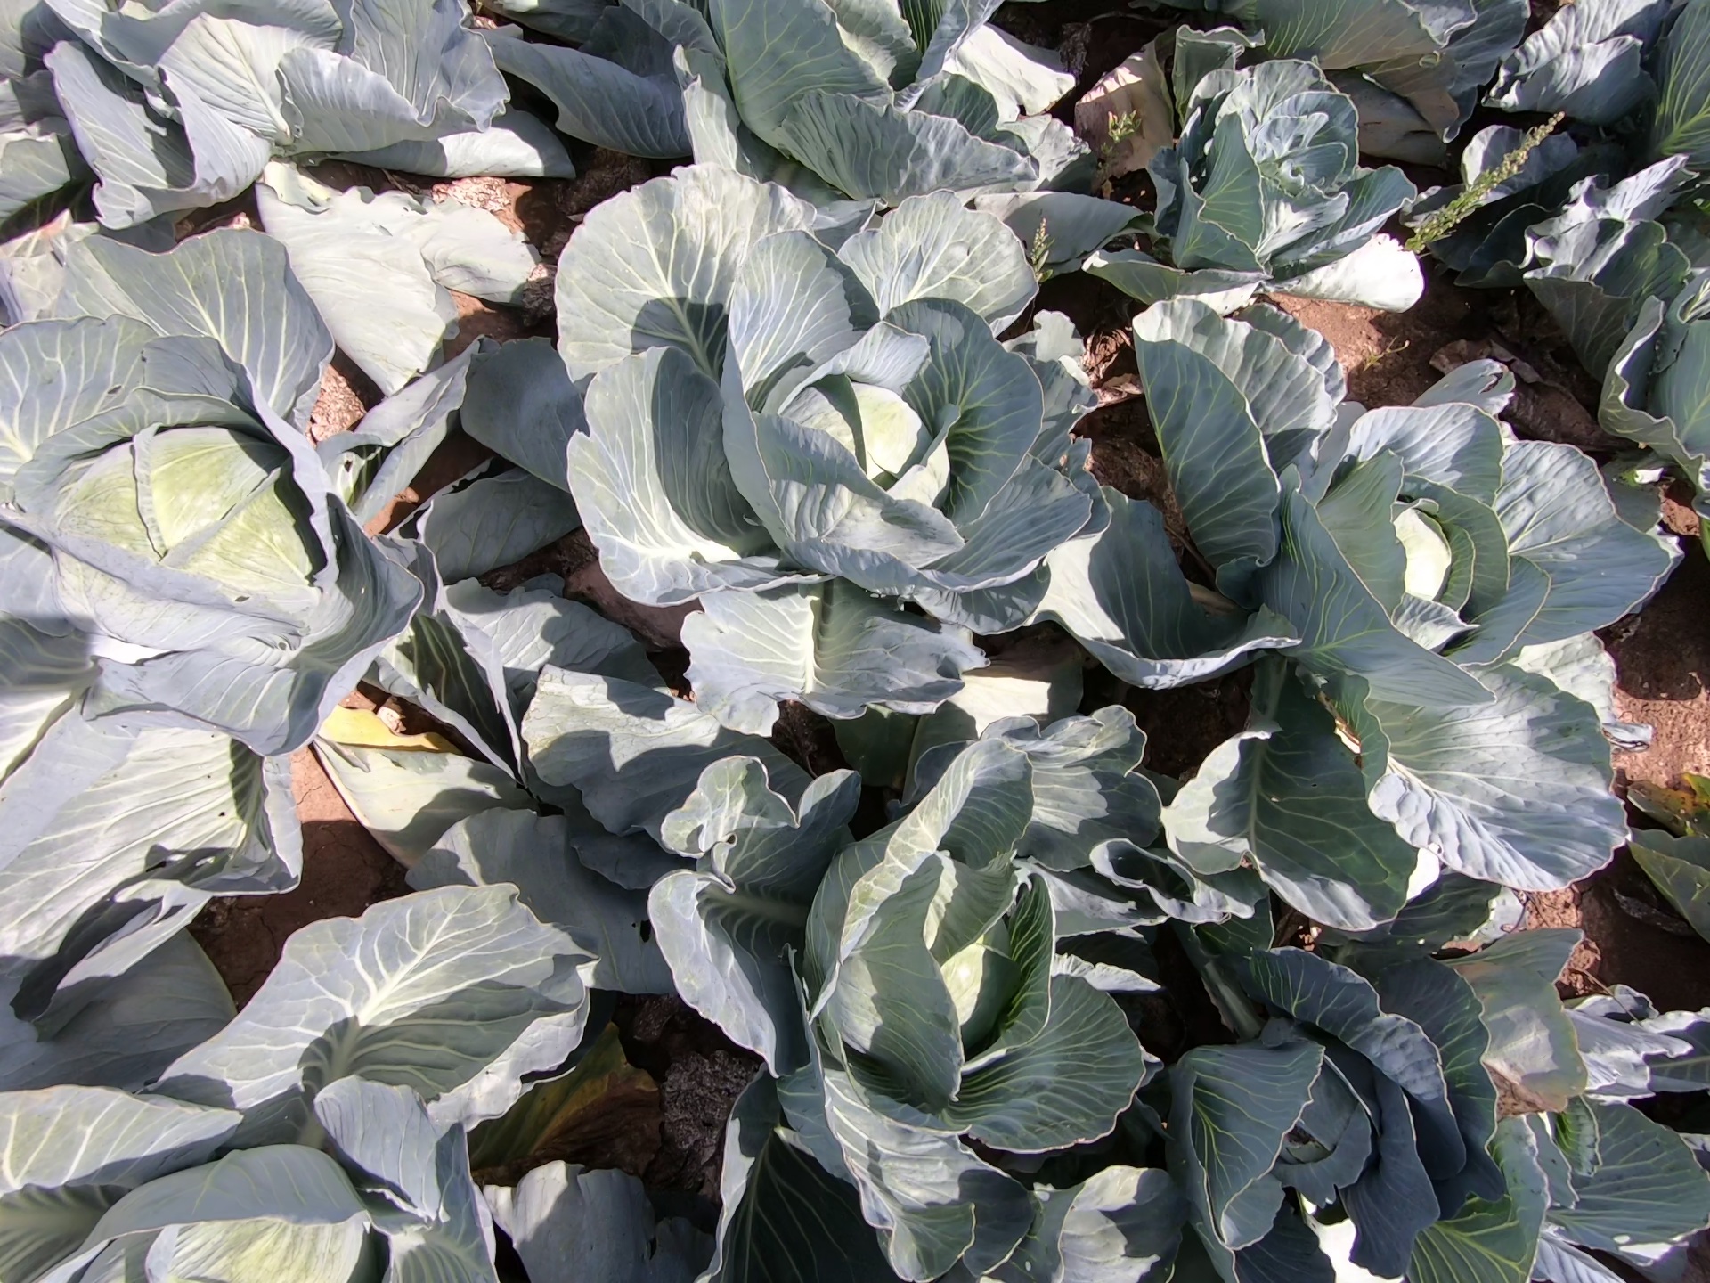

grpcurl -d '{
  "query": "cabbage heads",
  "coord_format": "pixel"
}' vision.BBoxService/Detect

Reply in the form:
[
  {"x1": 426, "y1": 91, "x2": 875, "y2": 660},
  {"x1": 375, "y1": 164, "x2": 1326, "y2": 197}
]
[
  {"x1": 1227, "y1": 1038, "x2": 1374, "y2": 1178},
  {"x1": 805, "y1": 837, "x2": 1011, "y2": 1073},
  {"x1": 1280, "y1": 485, "x2": 1459, "y2": 665},
  {"x1": 116, "y1": 2, "x2": 323, "y2": 121},
  {"x1": 38, "y1": 426, "x2": 331, "y2": 651},
  {"x1": 738, "y1": 2, "x2": 908, "y2": 141},
  {"x1": 761, "y1": 375, "x2": 953, "y2": 561},
  {"x1": 77, "y1": 1146, "x2": 379, "y2": 1279}
]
